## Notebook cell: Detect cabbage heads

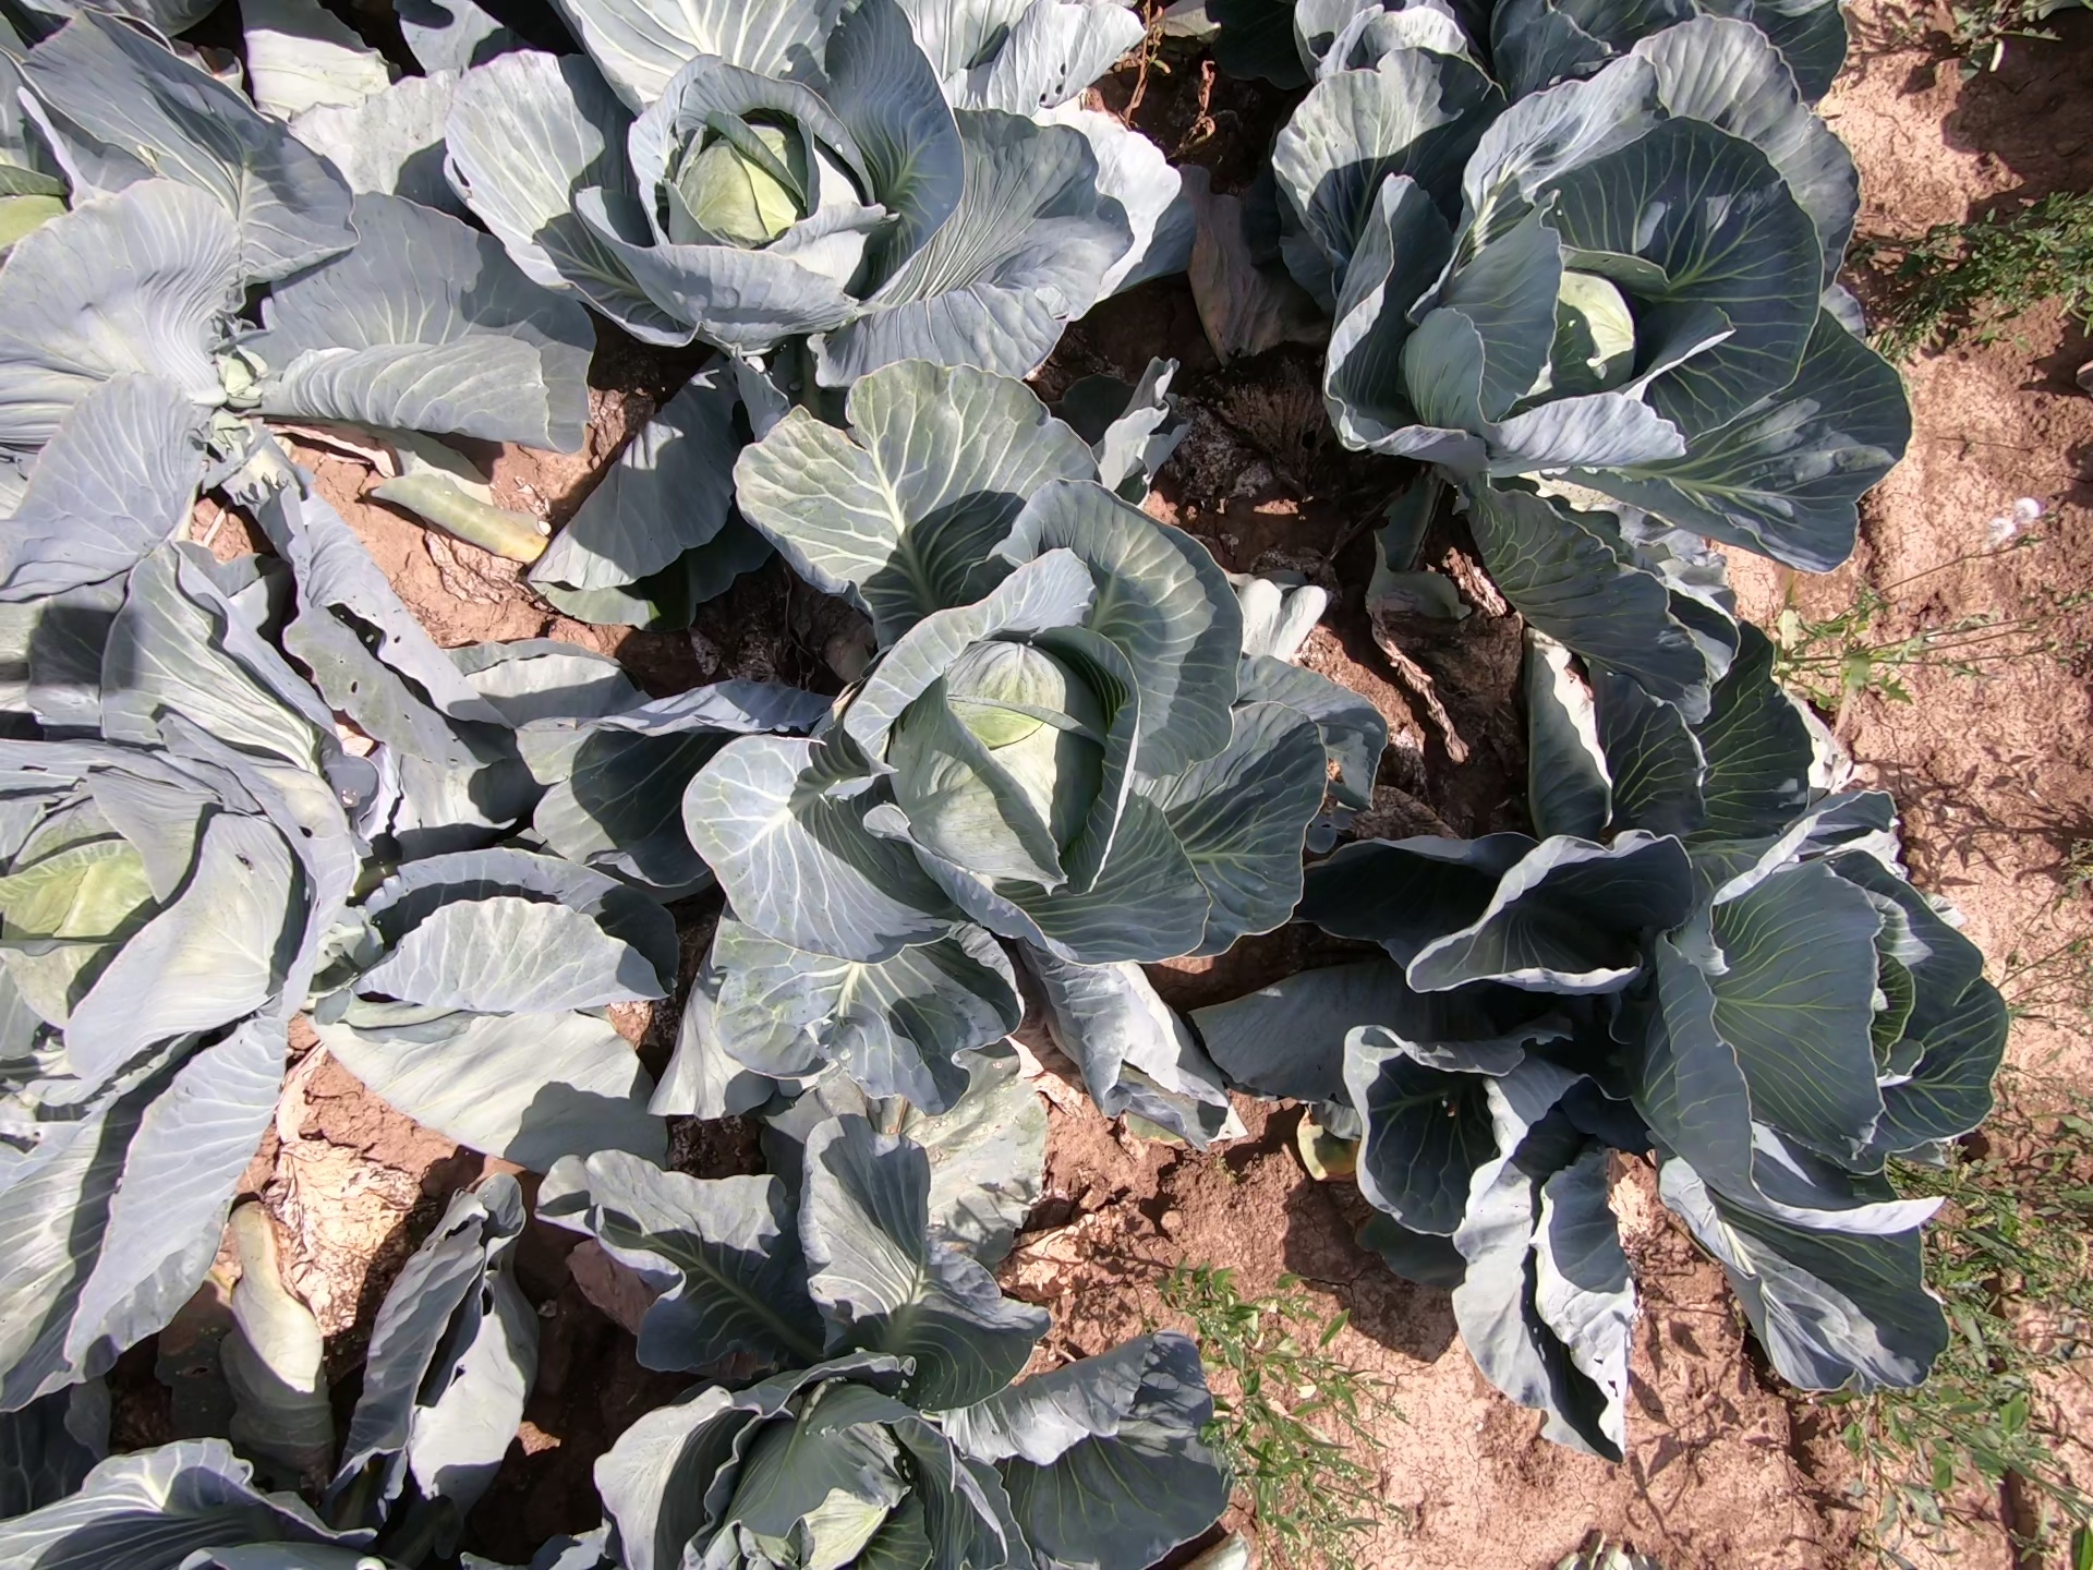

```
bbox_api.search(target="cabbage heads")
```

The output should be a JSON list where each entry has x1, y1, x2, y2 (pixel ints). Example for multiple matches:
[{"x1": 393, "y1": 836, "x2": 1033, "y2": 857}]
[
  {"x1": 1660, "y1": 929, "x2": 1876, "y2": 1094},
  {"x1": 1463, "y1": 255, "x2": 1643, "y2": 432},
  {"x1": 886, "y1": 642, "x2": 1106, "y2": 878},
  {"x1": 1, "y1": 188, "x2": 193, "y2": 443},
  {"x1": 1, "y1": 787, "x2": 280, "y2": 1039},
  {"x1": 741, "y1": 1421, "x2": 899, "y2": 1570},
  {"x1": 652, "y1": 109, "x2": 873, "y2": 328}
]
